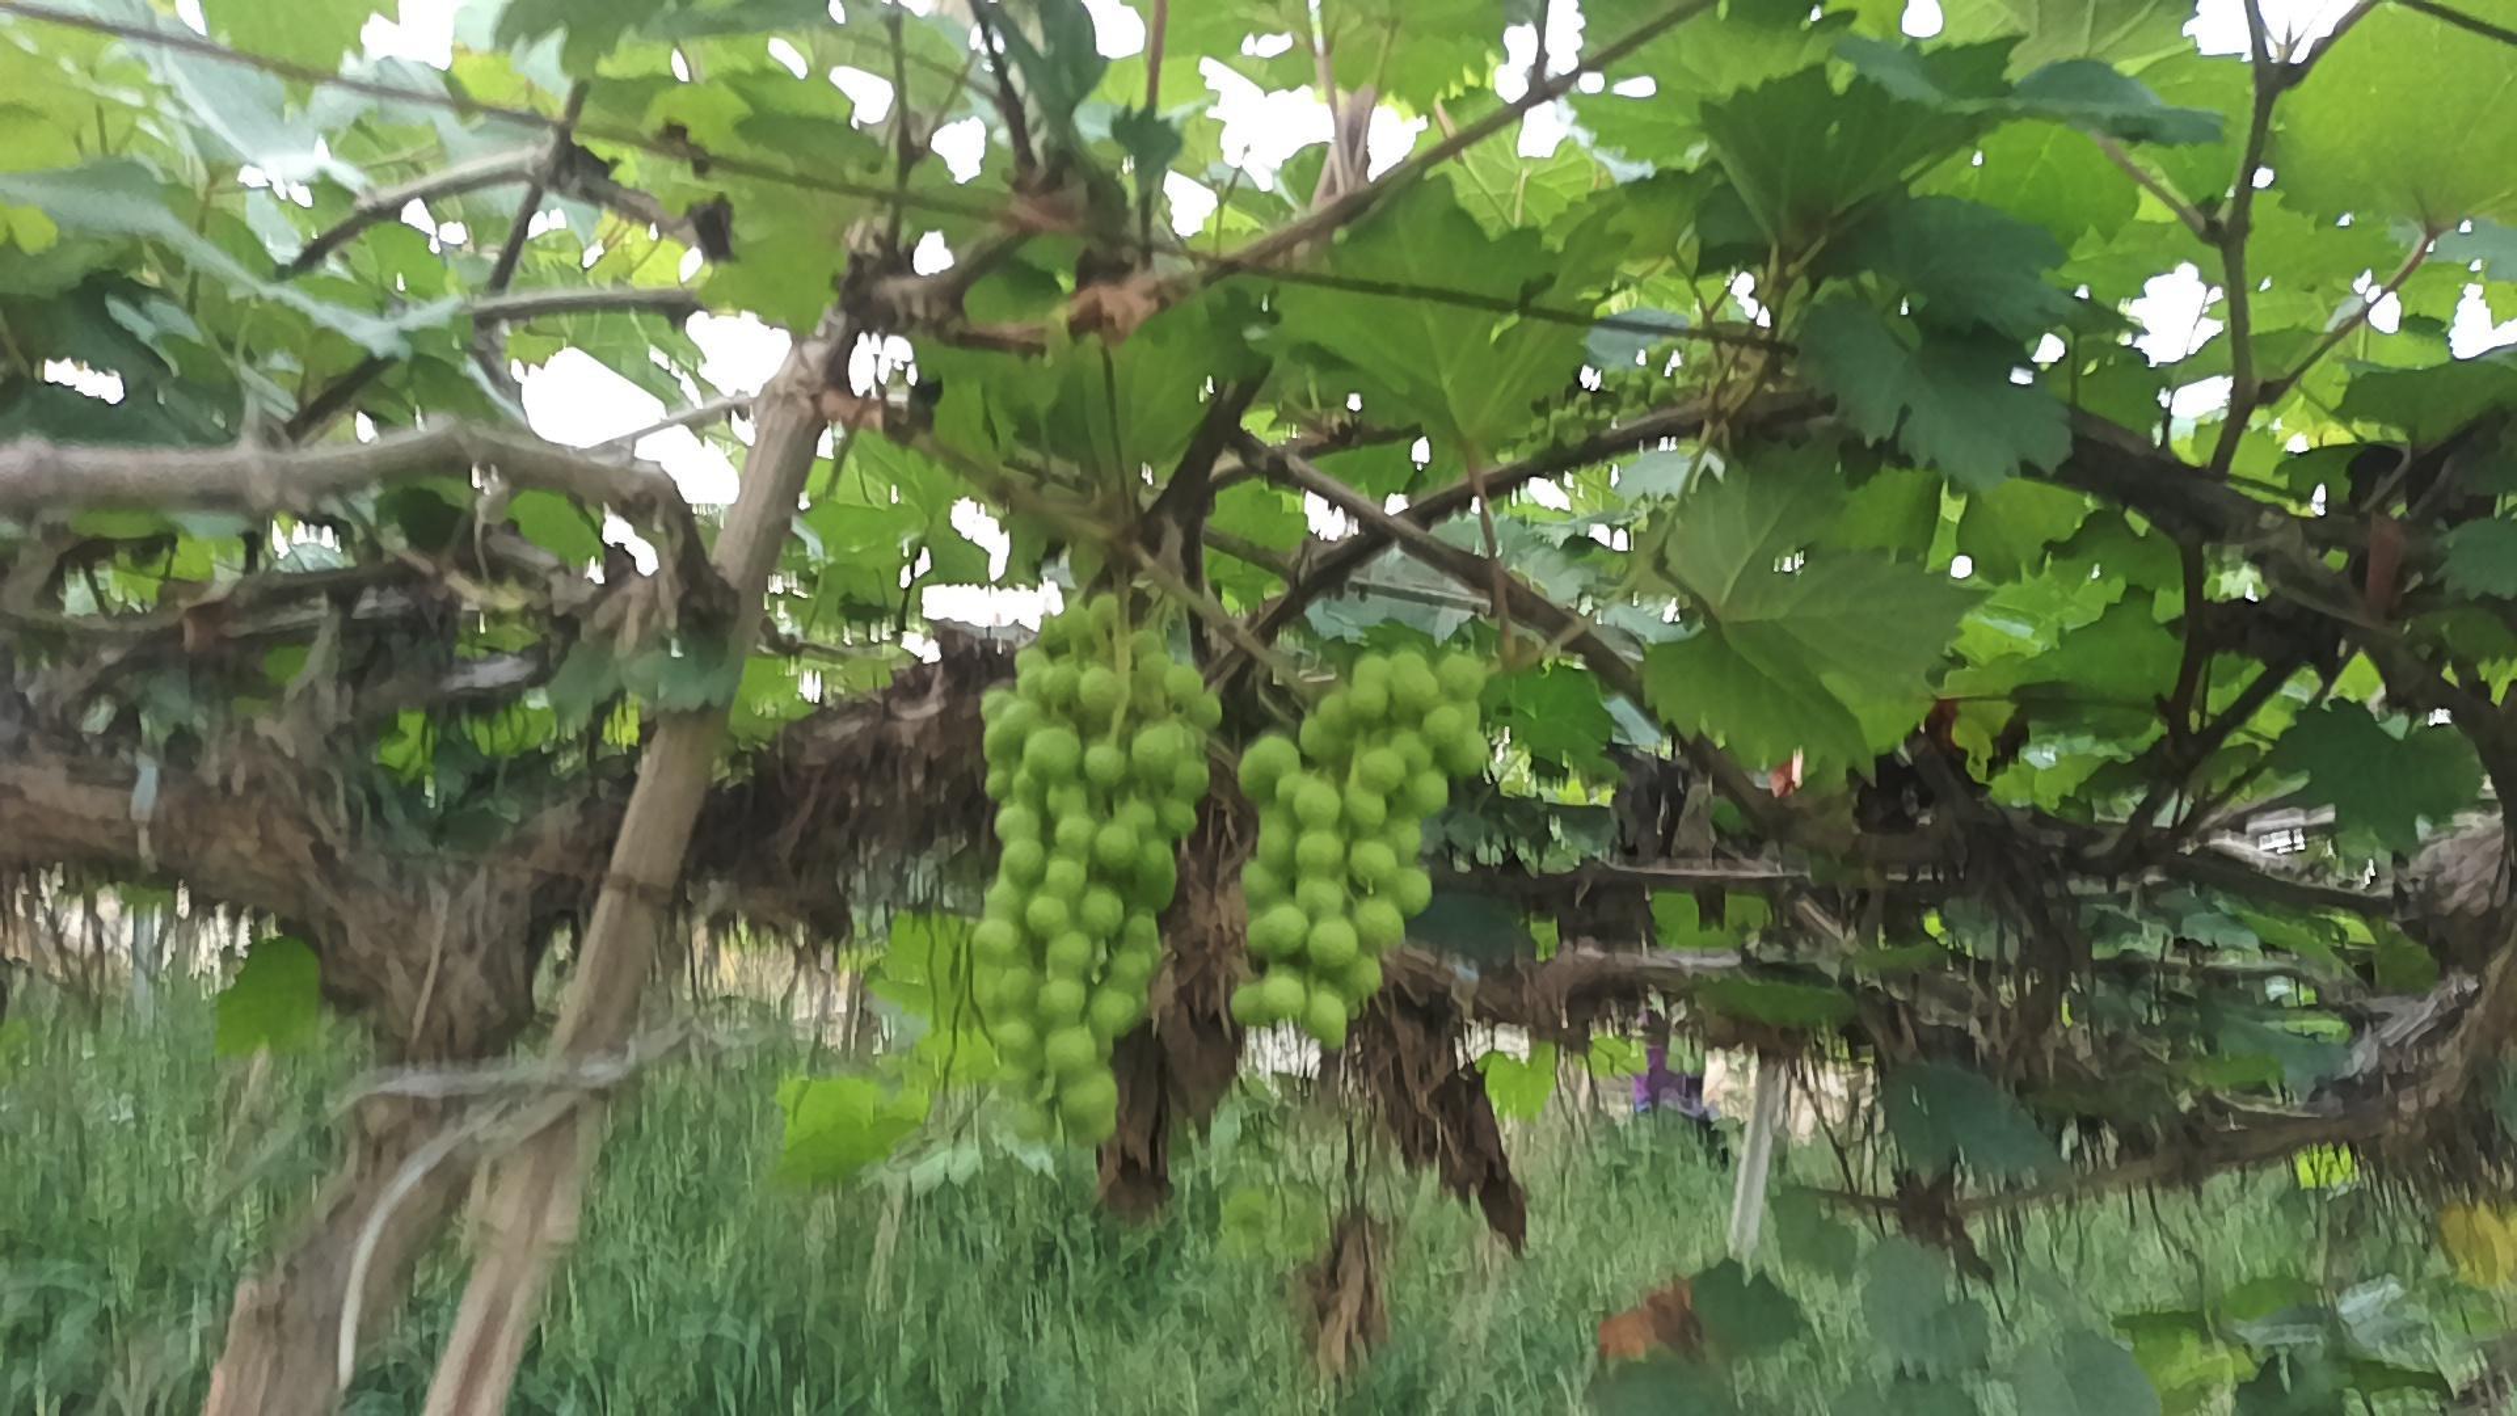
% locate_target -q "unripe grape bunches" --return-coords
[1512,338,1721,463]
[970,594,1222,1150]
[1230,649,1488,1053]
